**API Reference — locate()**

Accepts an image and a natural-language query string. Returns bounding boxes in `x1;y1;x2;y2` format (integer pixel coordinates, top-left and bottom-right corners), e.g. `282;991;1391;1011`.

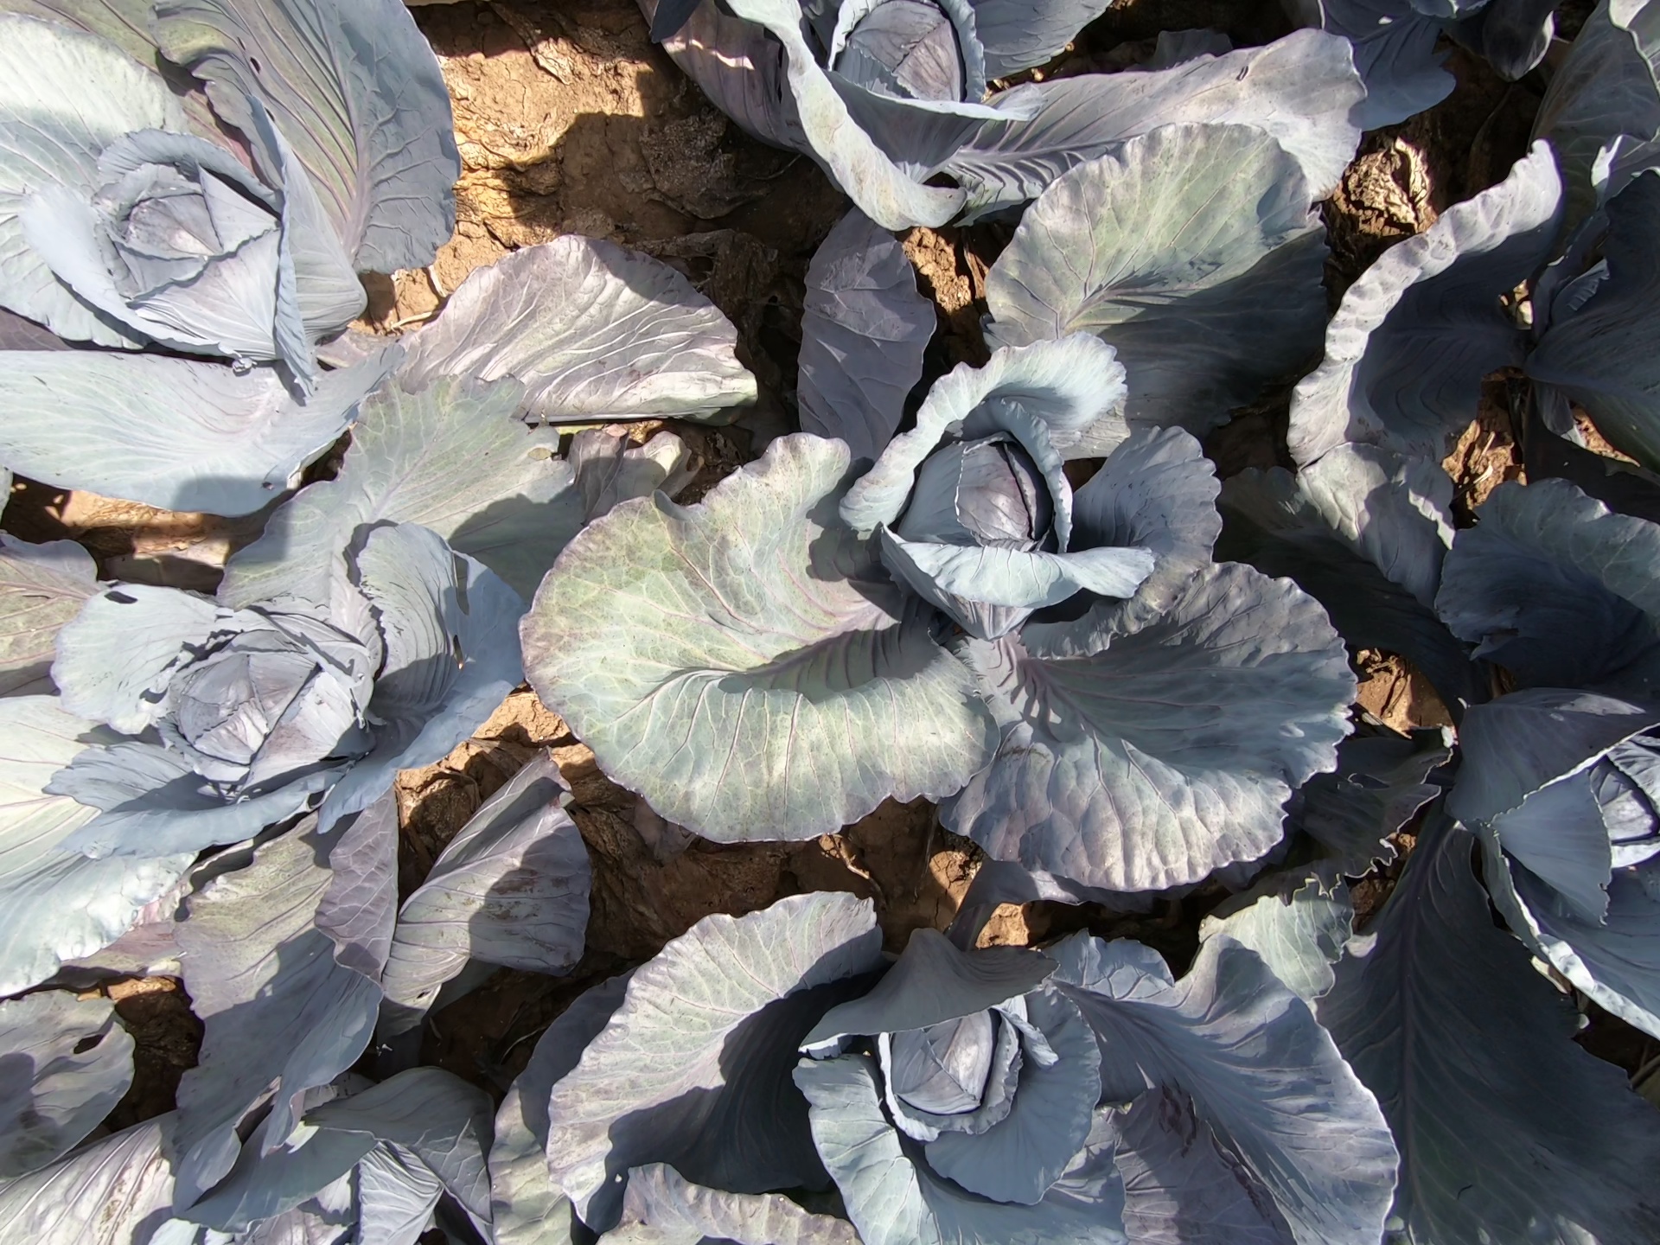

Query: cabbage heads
127;182;283;323
834;1;973;151
229;1121;425;1242
171;612;371;775
888;987;1008;1116
916;442;1053;605
1492;694;1656;870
